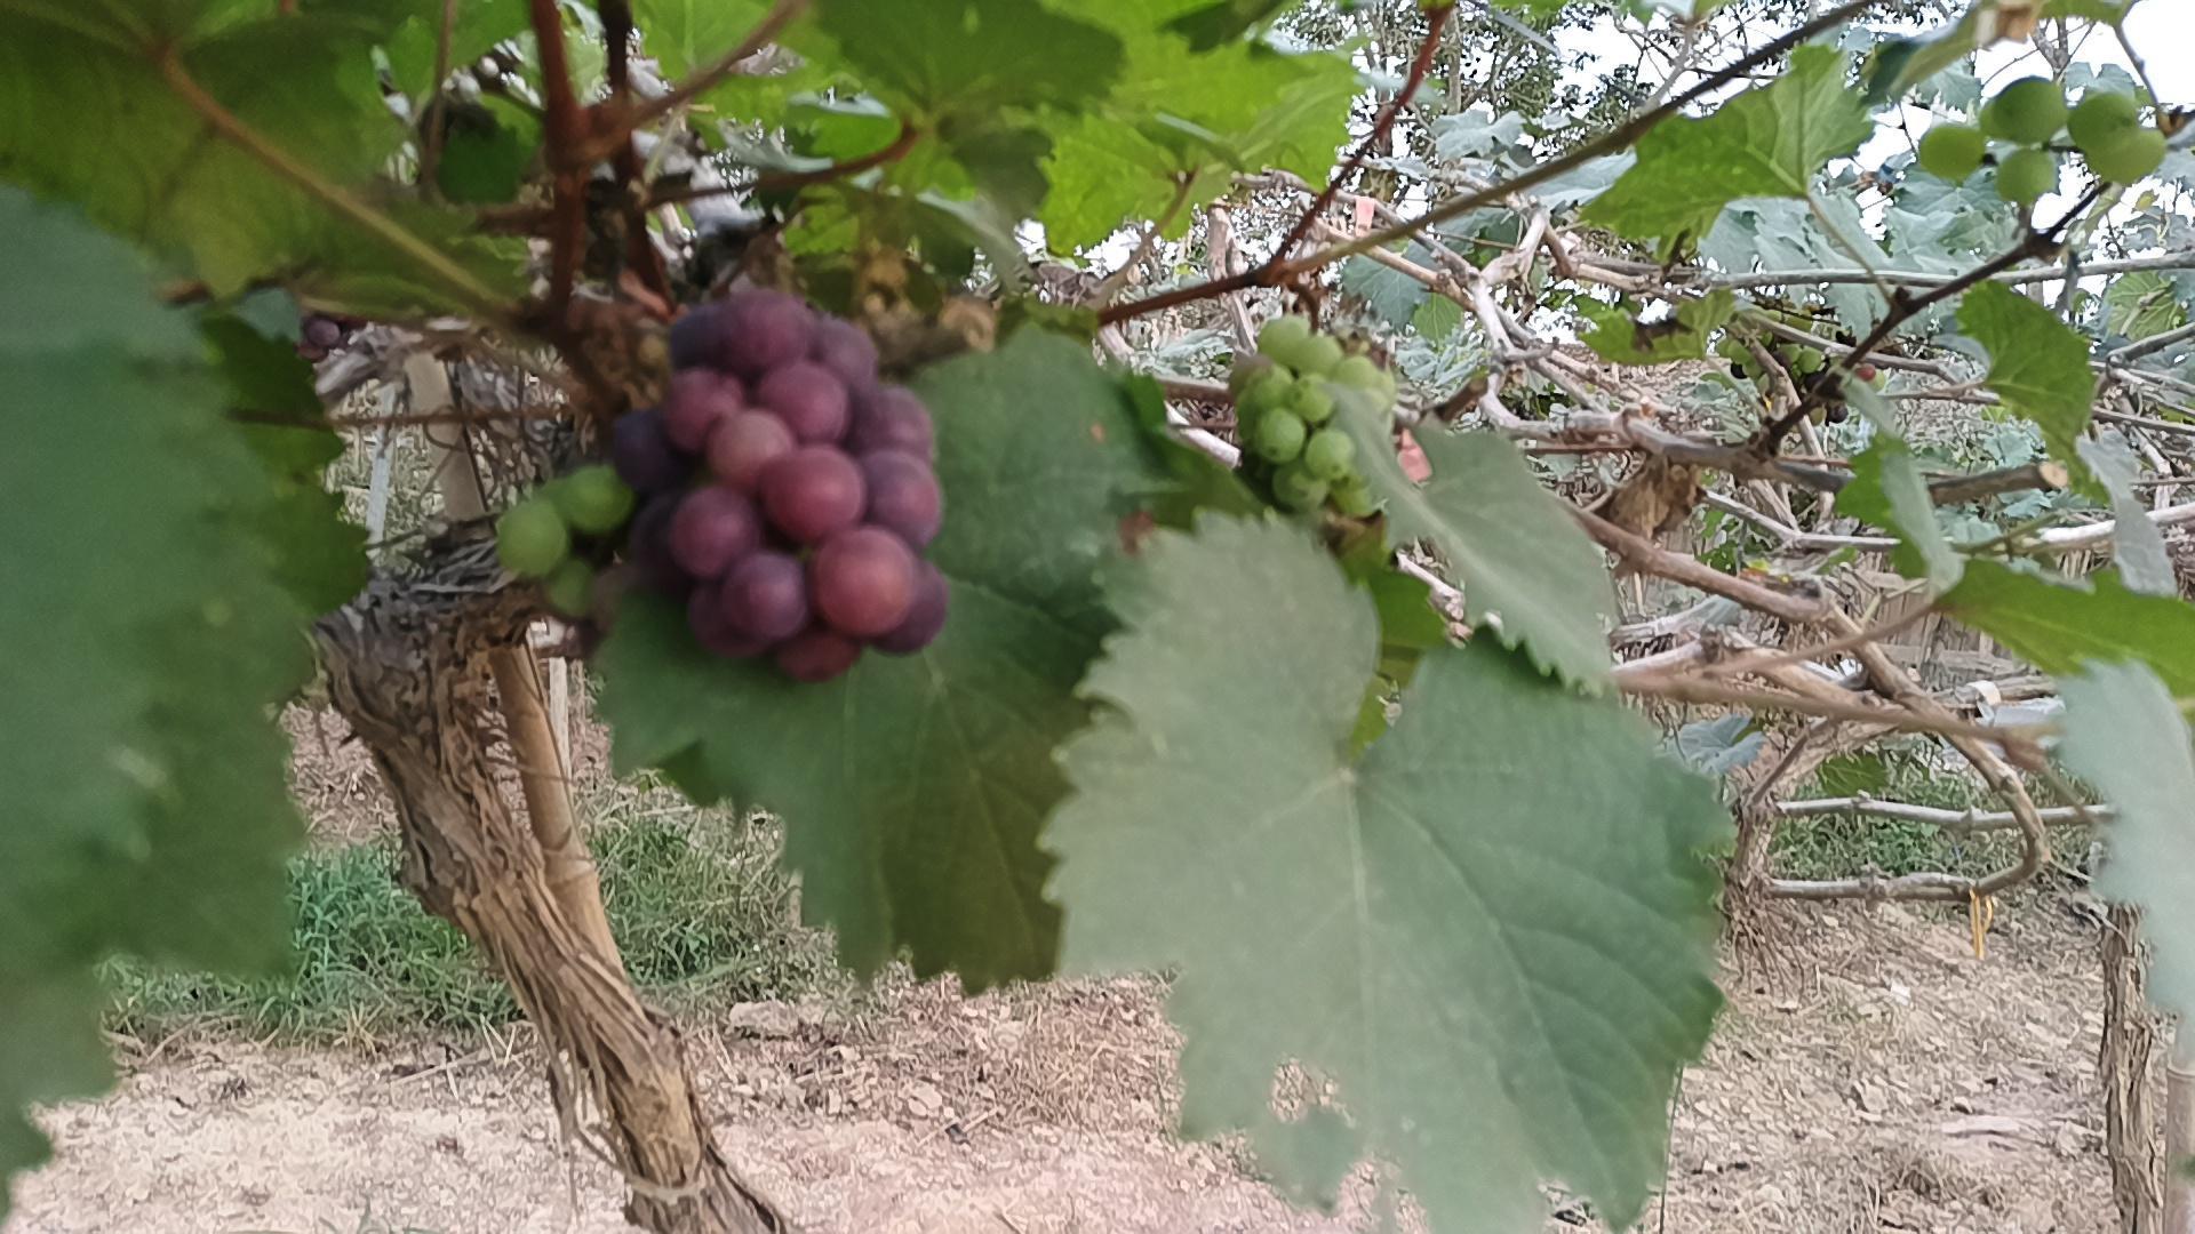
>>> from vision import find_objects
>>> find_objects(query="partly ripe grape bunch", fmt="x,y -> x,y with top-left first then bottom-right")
495,458 -> 637,665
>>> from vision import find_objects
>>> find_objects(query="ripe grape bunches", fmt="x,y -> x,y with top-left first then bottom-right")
607,287 -> 952,686
294,311 -> 366,363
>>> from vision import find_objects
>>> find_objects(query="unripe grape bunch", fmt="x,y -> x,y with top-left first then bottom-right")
1229,315 -> 1396,520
